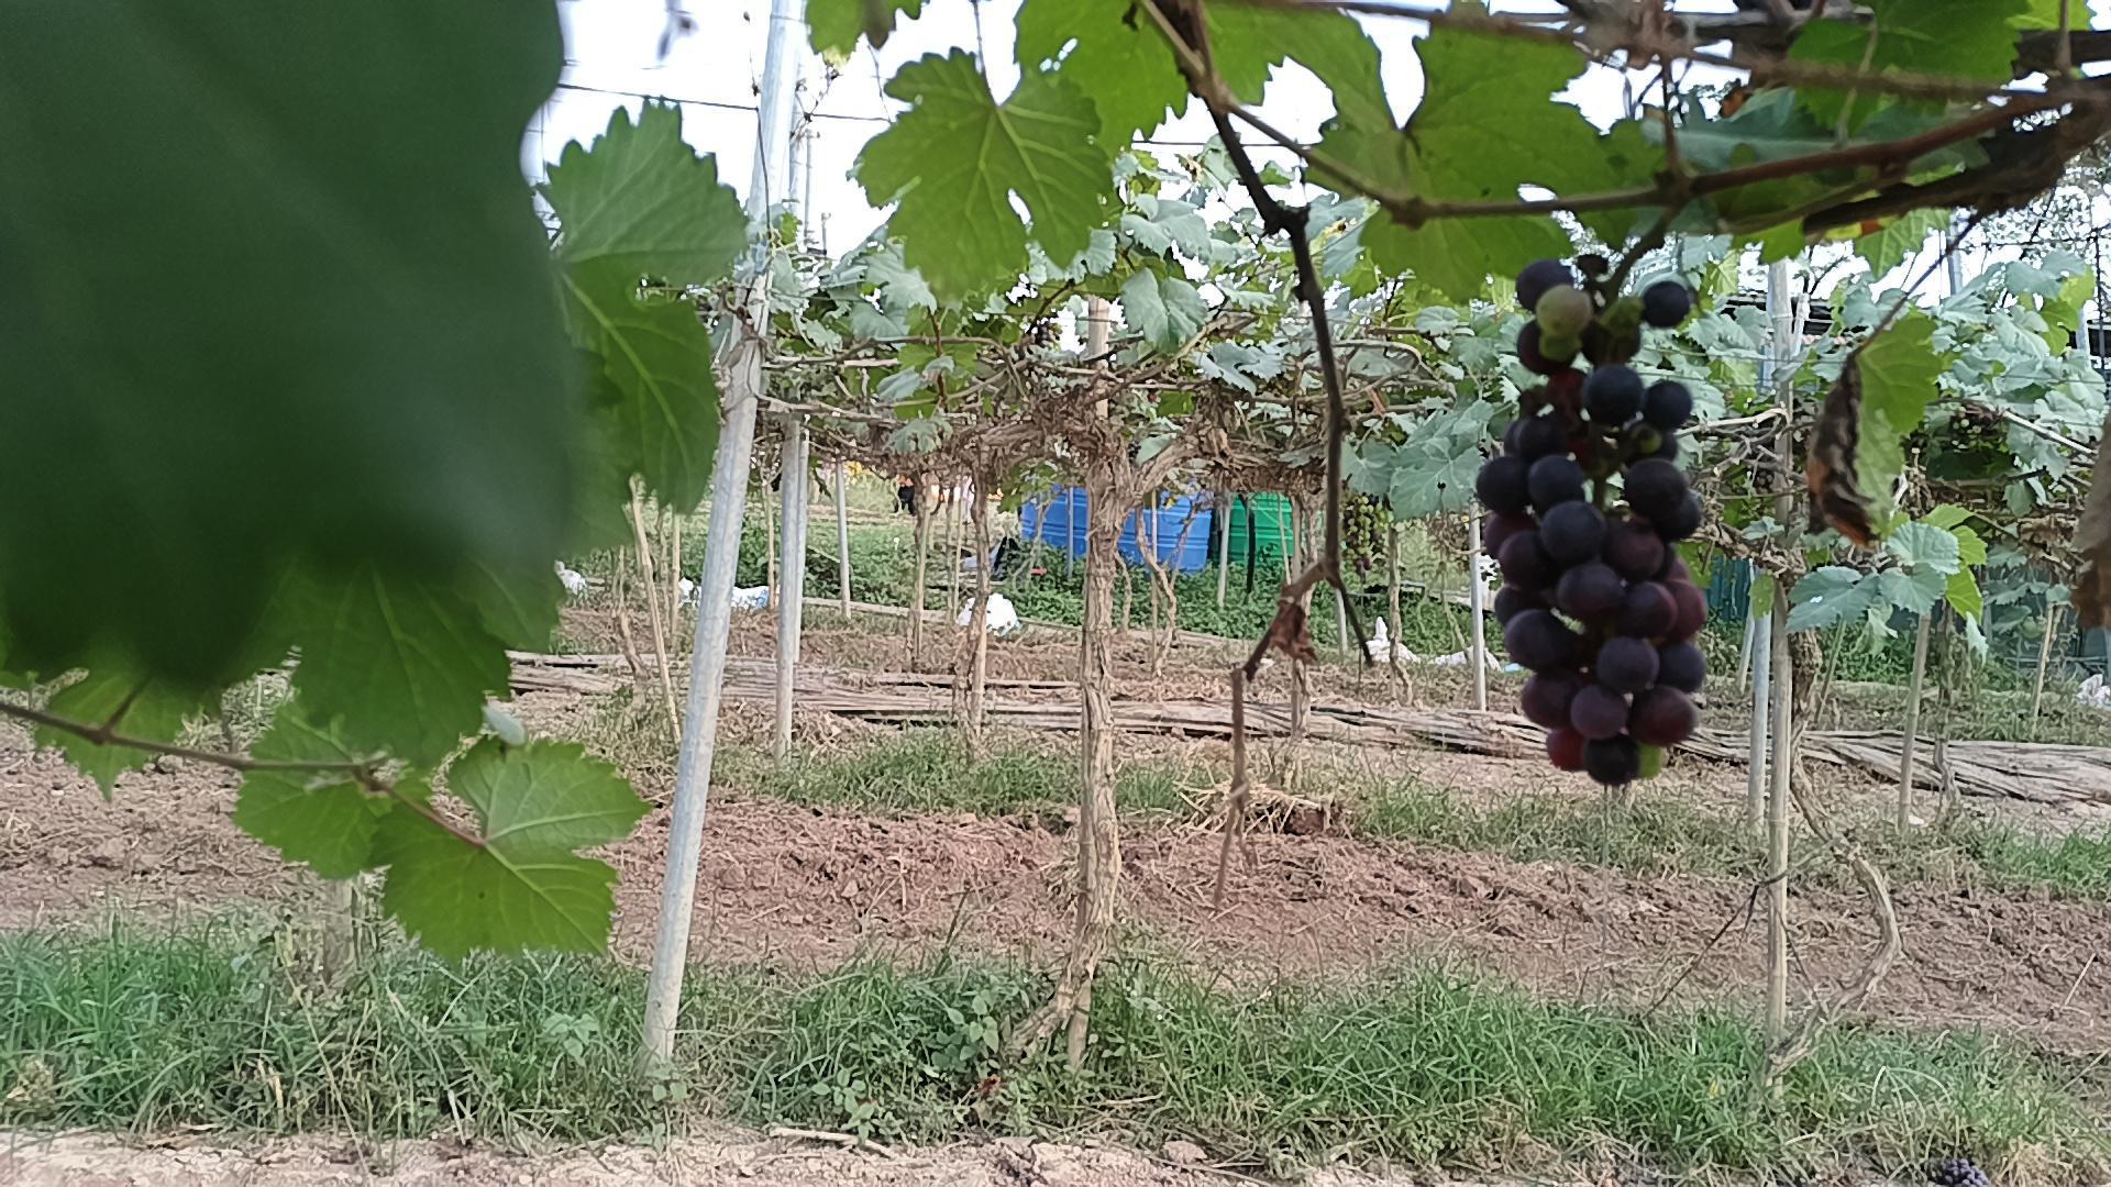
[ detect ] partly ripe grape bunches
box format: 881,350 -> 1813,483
1477,260 -> 1704,785
1341,493 -> 1385,579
